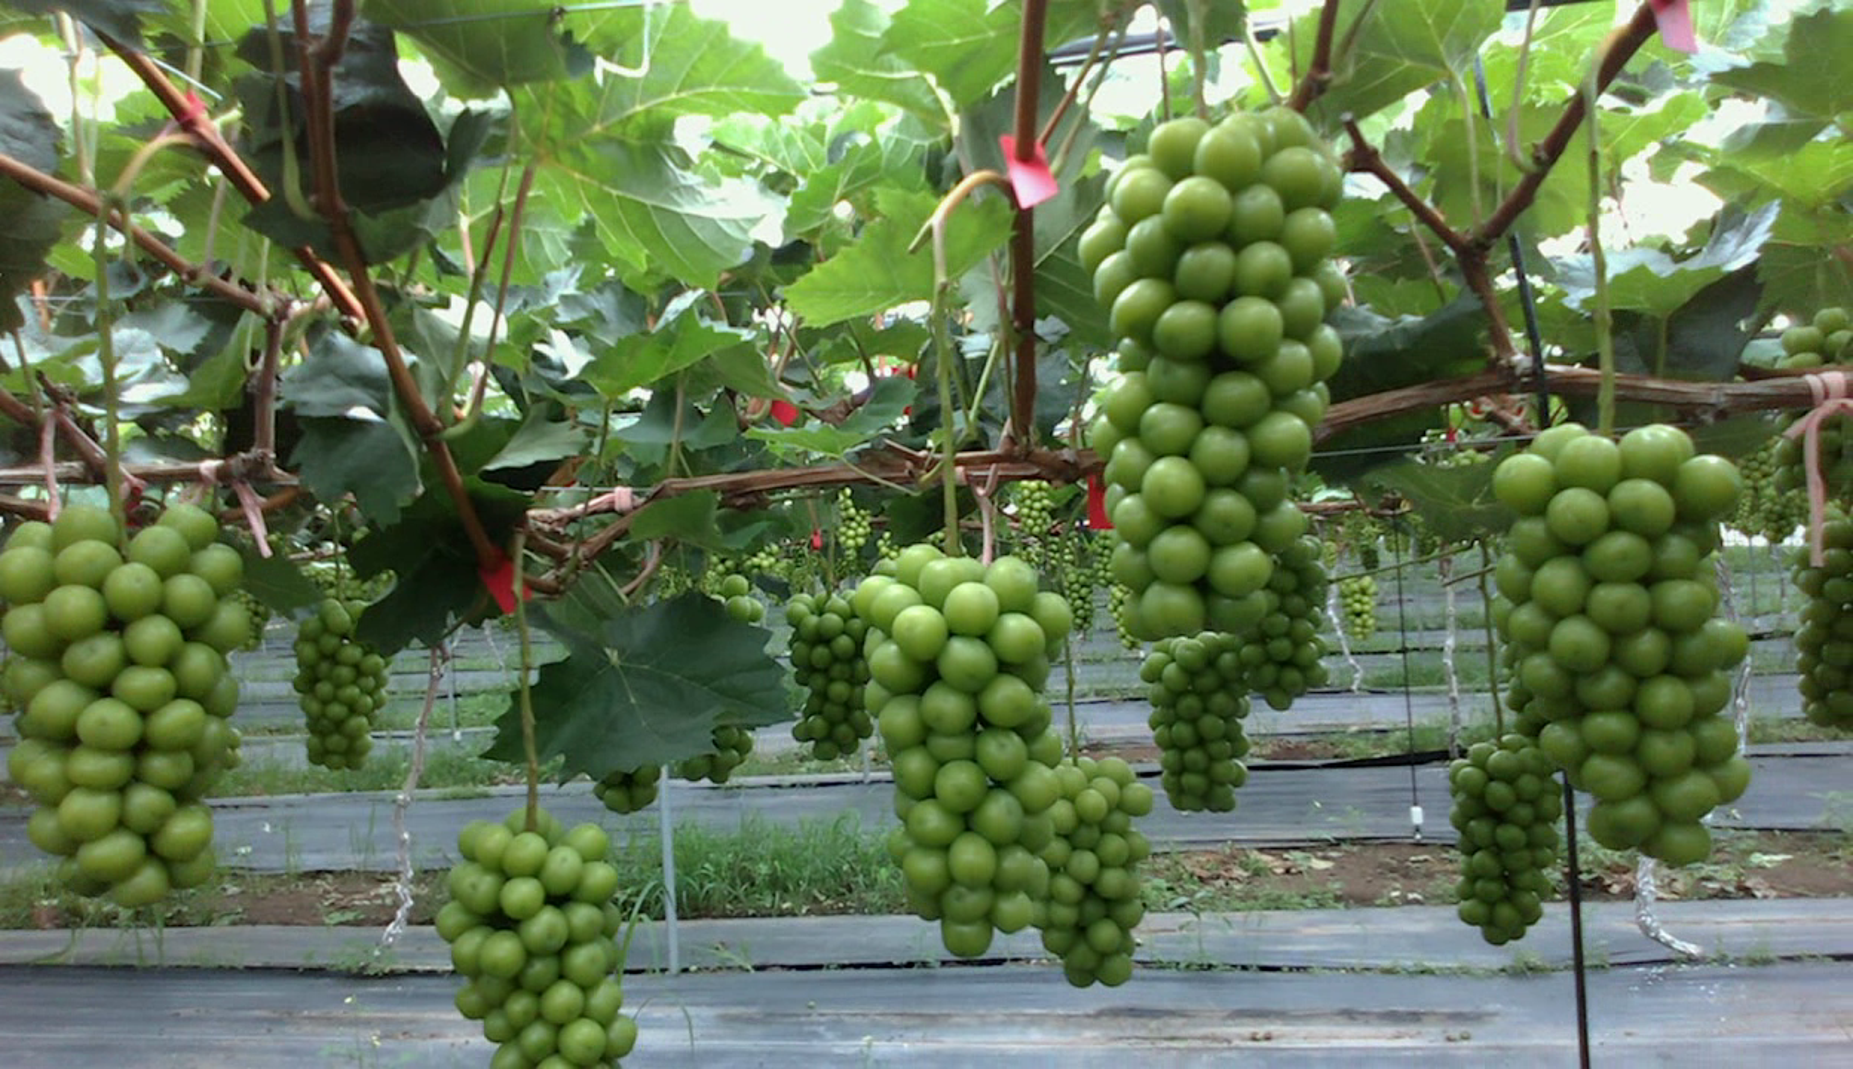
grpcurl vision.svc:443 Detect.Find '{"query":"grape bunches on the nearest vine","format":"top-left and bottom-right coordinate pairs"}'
top-left (1491, 422), bottom-right (1752, 866)
top-left (434, 805), bottom-right (638, 1068)
top-left (1029, 756), bottom-right (1154, 989)
top-left (1076, 105), bottom-right (1345, 643)
top-left (0, 503), bottom-right (251, 910)
top-left (851, 543), bottom-right (1072, 956)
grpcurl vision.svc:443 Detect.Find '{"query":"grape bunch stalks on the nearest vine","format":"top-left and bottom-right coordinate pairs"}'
top-left (88, 132), bottom-right (197, 560)
top-left (1584, 24), bottom-right (1618, 438)
top-left (929, 171), bottom-right (1010, 557)
top-left (509, 536), bottom-right (537, 831)
top-left (1183, 1), bottom-right (1207, 117)
top-left (1065, 638), bottom-right (1076, 763)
